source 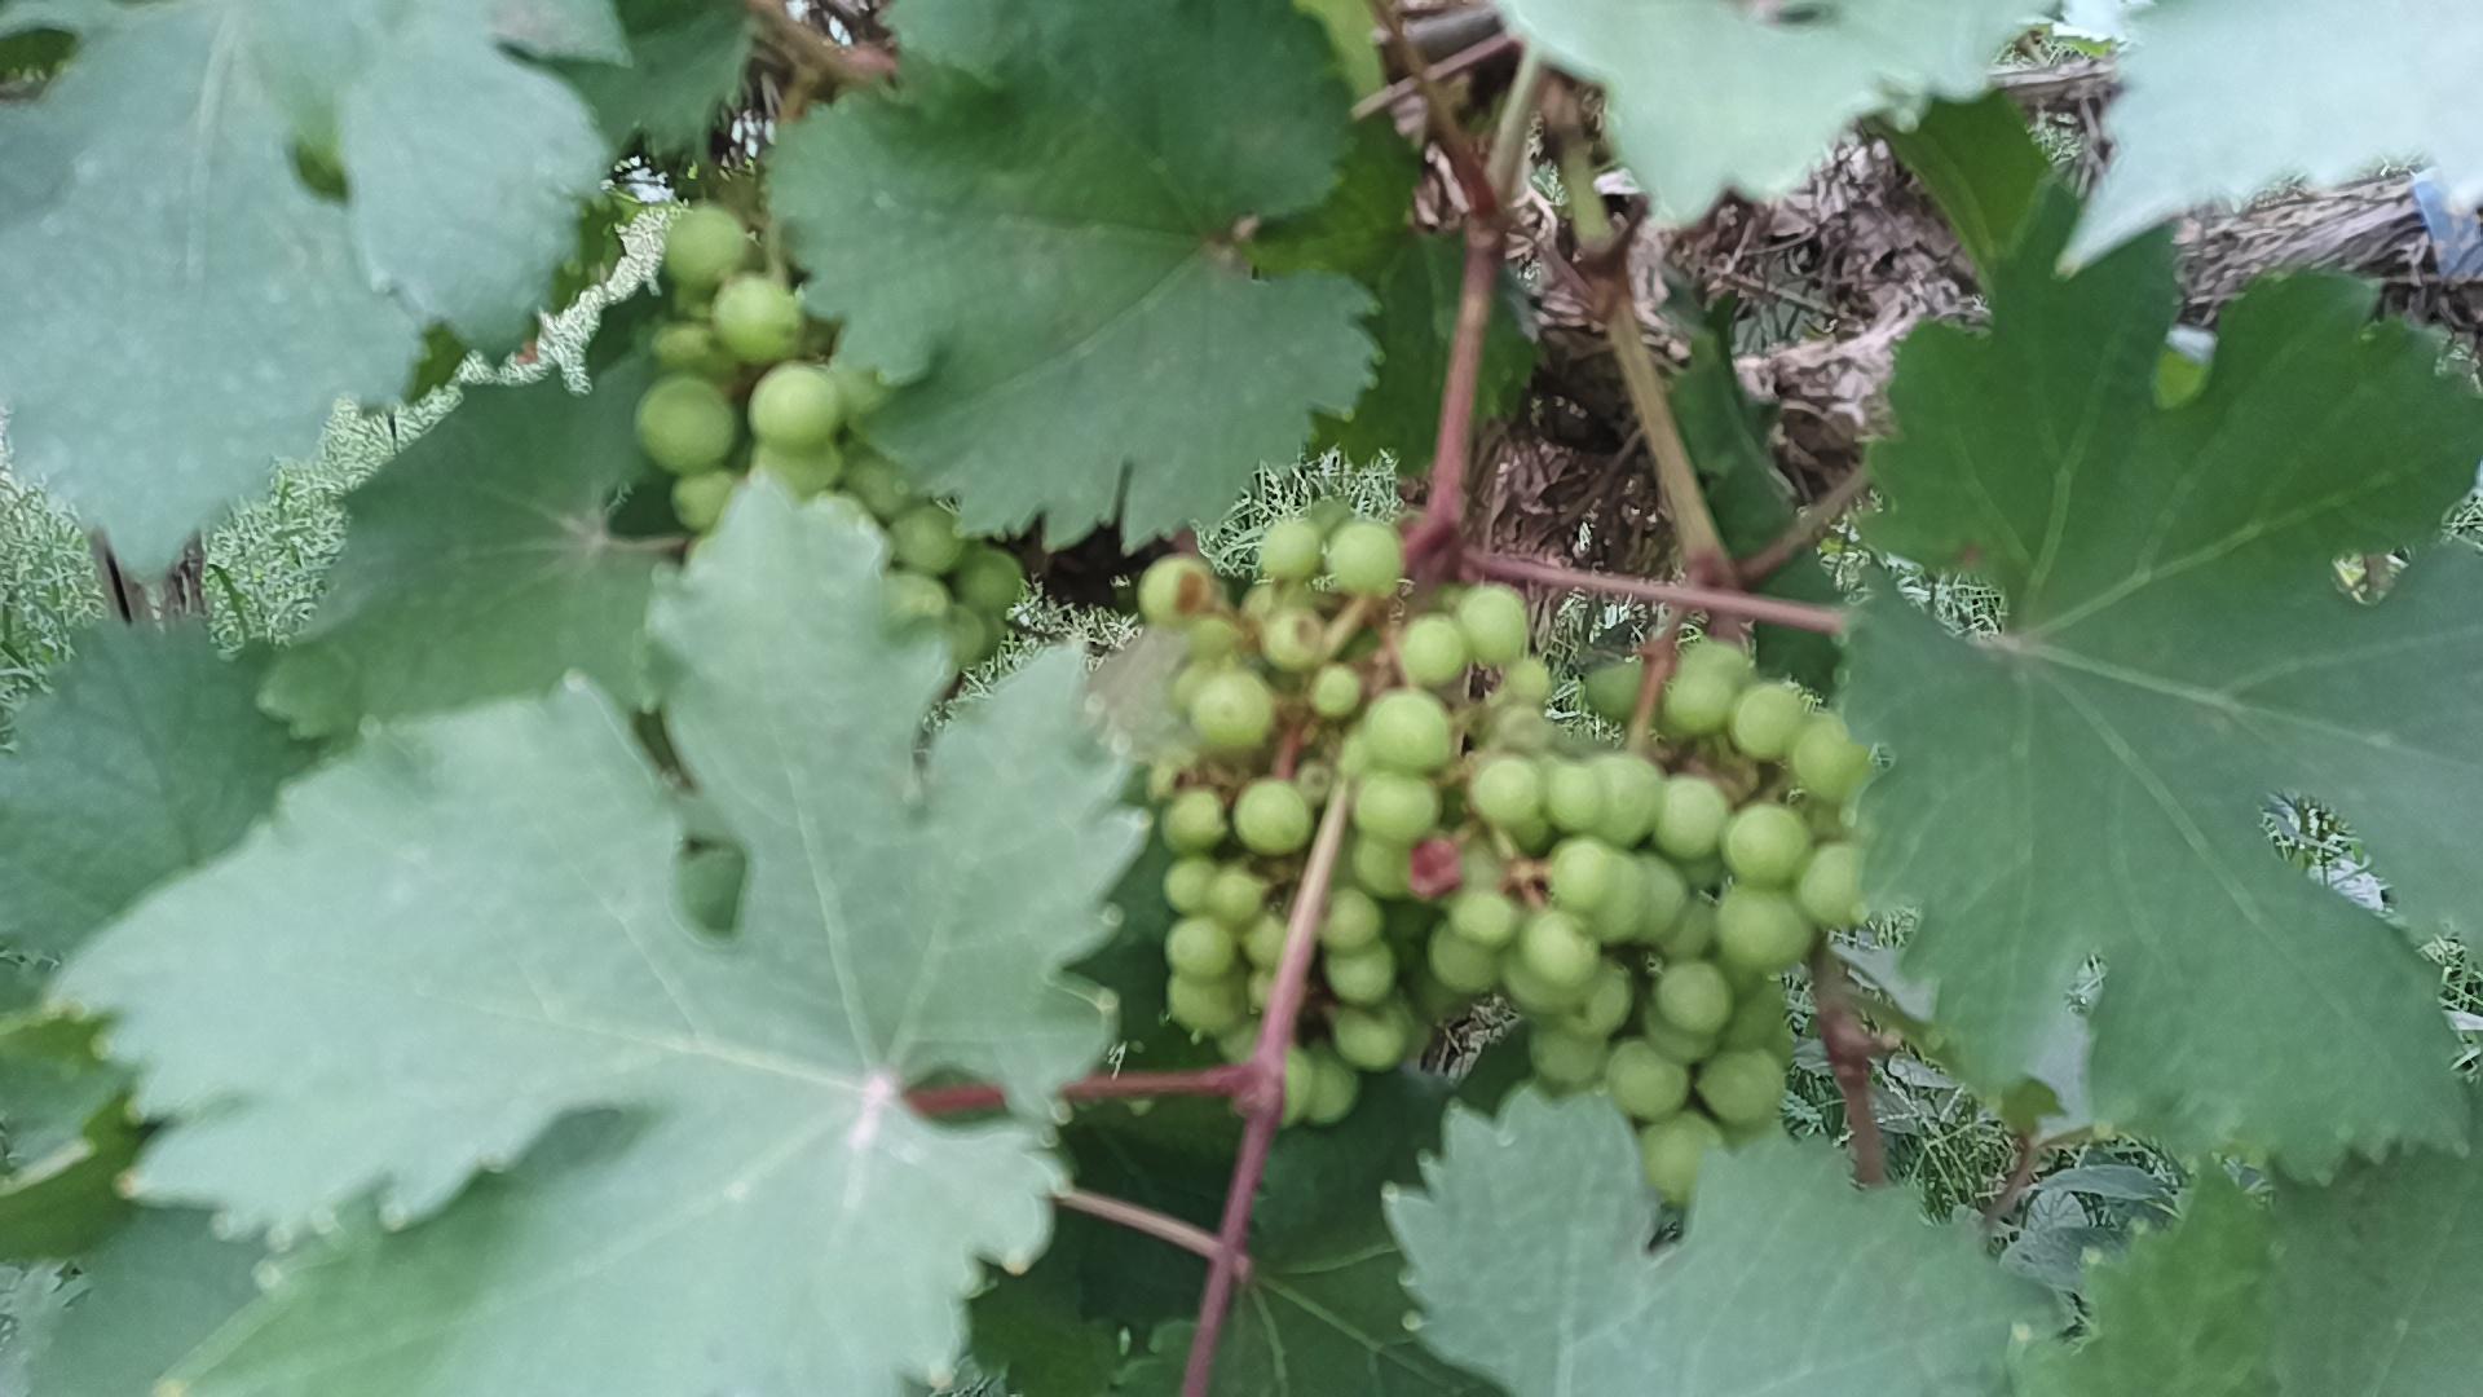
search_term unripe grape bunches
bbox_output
[1349,585,1664,1014]
[1139,511,1455,1121]
[634,203,1024,671]
[1530,636,1871,1240]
